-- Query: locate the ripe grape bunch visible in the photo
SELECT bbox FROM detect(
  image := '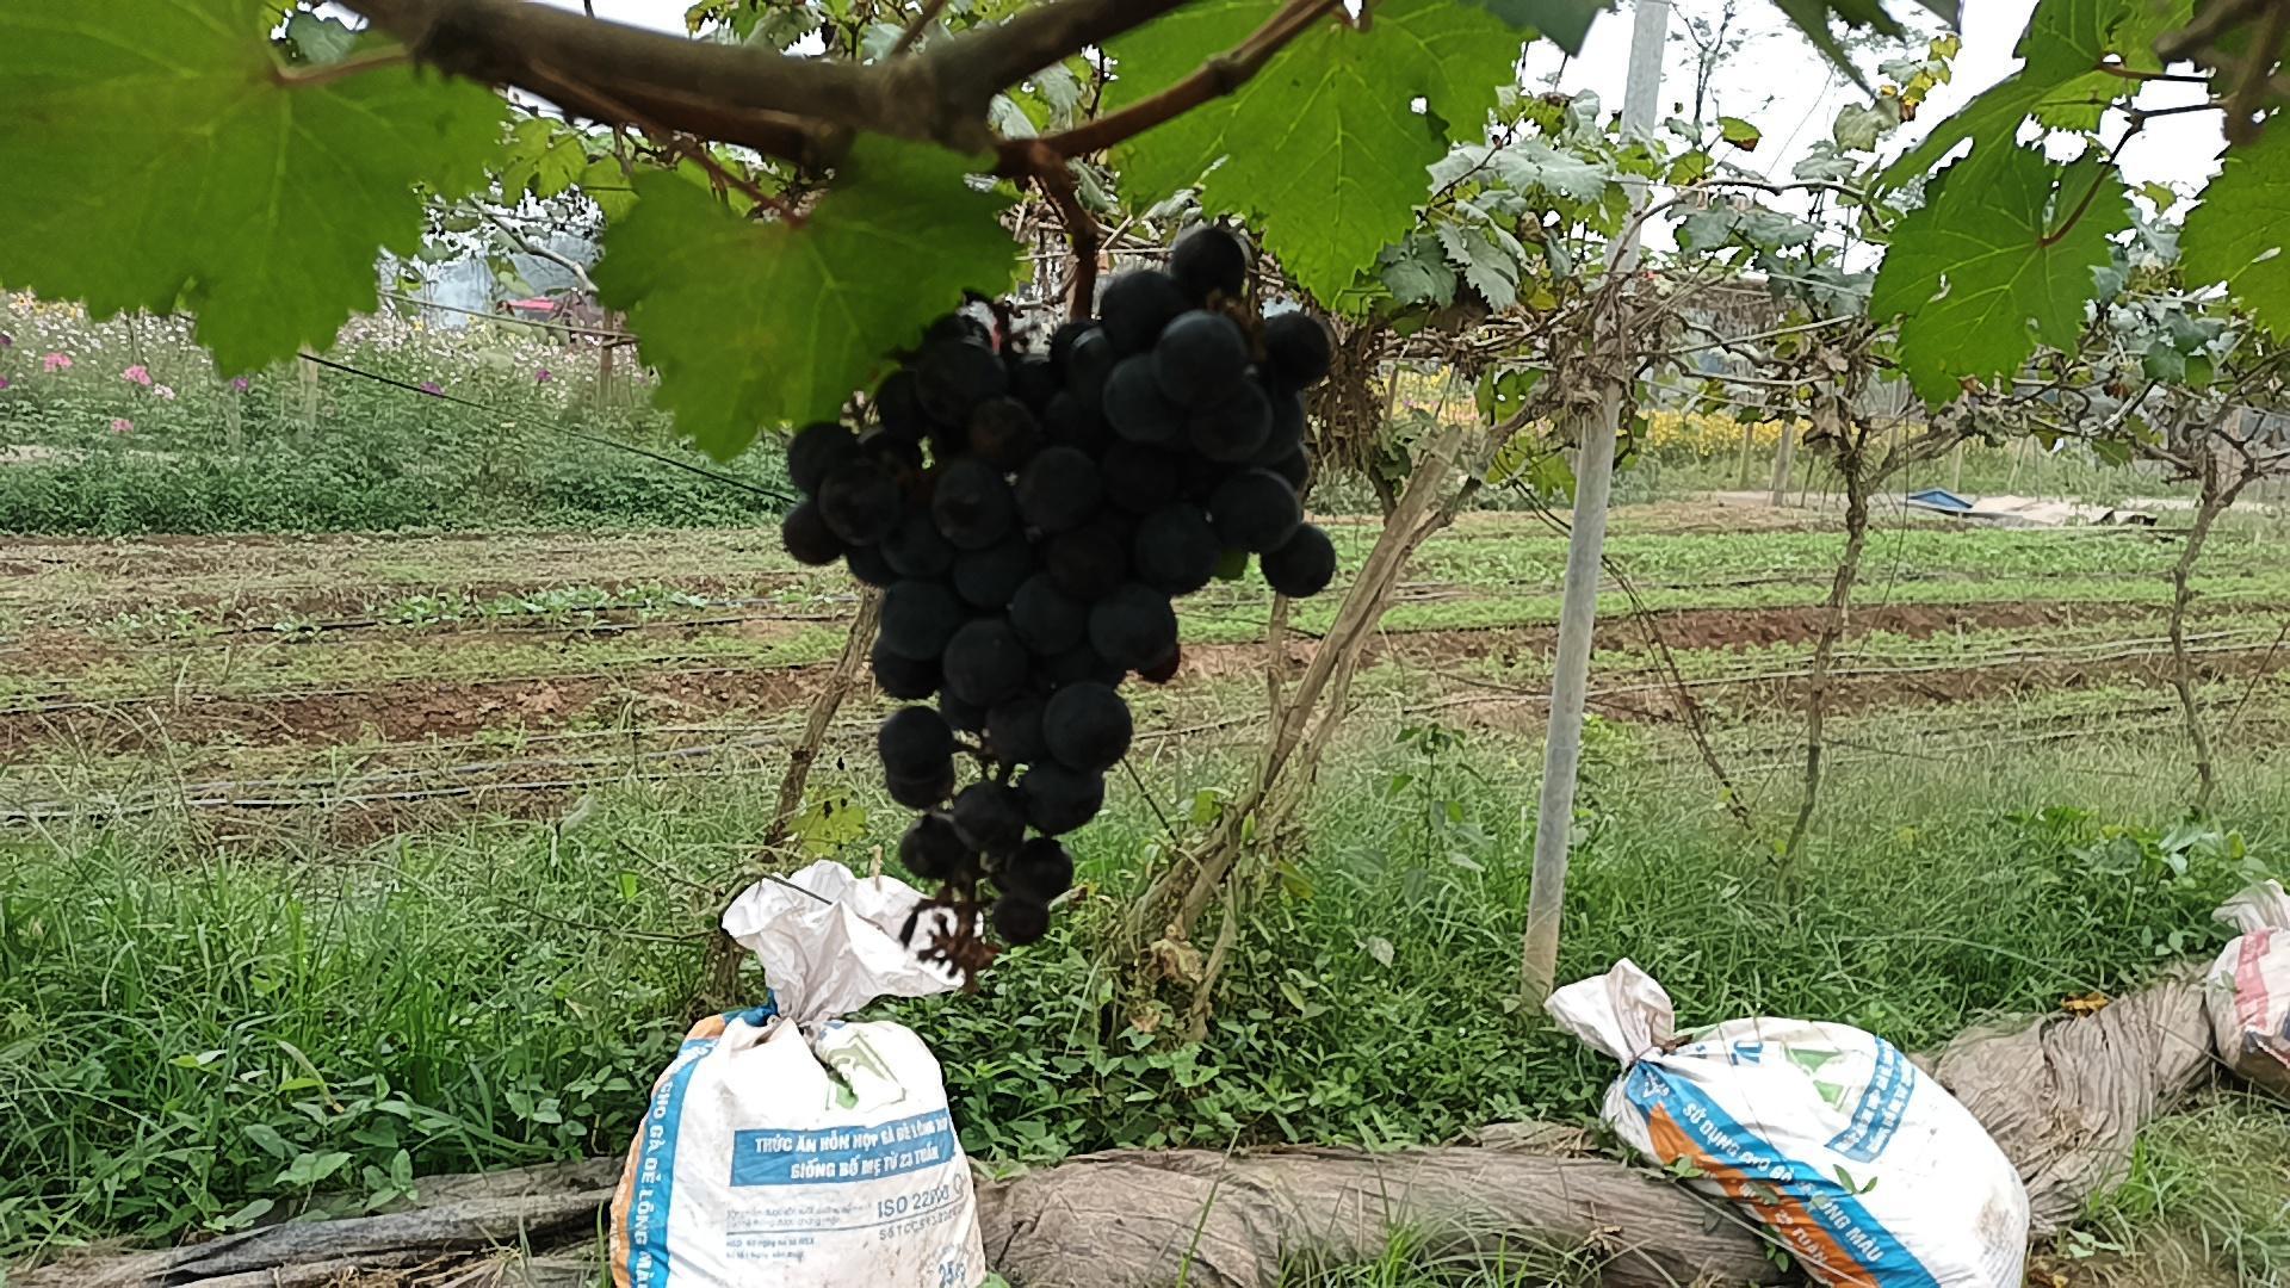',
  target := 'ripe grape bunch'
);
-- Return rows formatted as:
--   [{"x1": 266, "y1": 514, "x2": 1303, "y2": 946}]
[{"x1": 782, "y1": 227, "x2": 1335, "y2": 943}]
